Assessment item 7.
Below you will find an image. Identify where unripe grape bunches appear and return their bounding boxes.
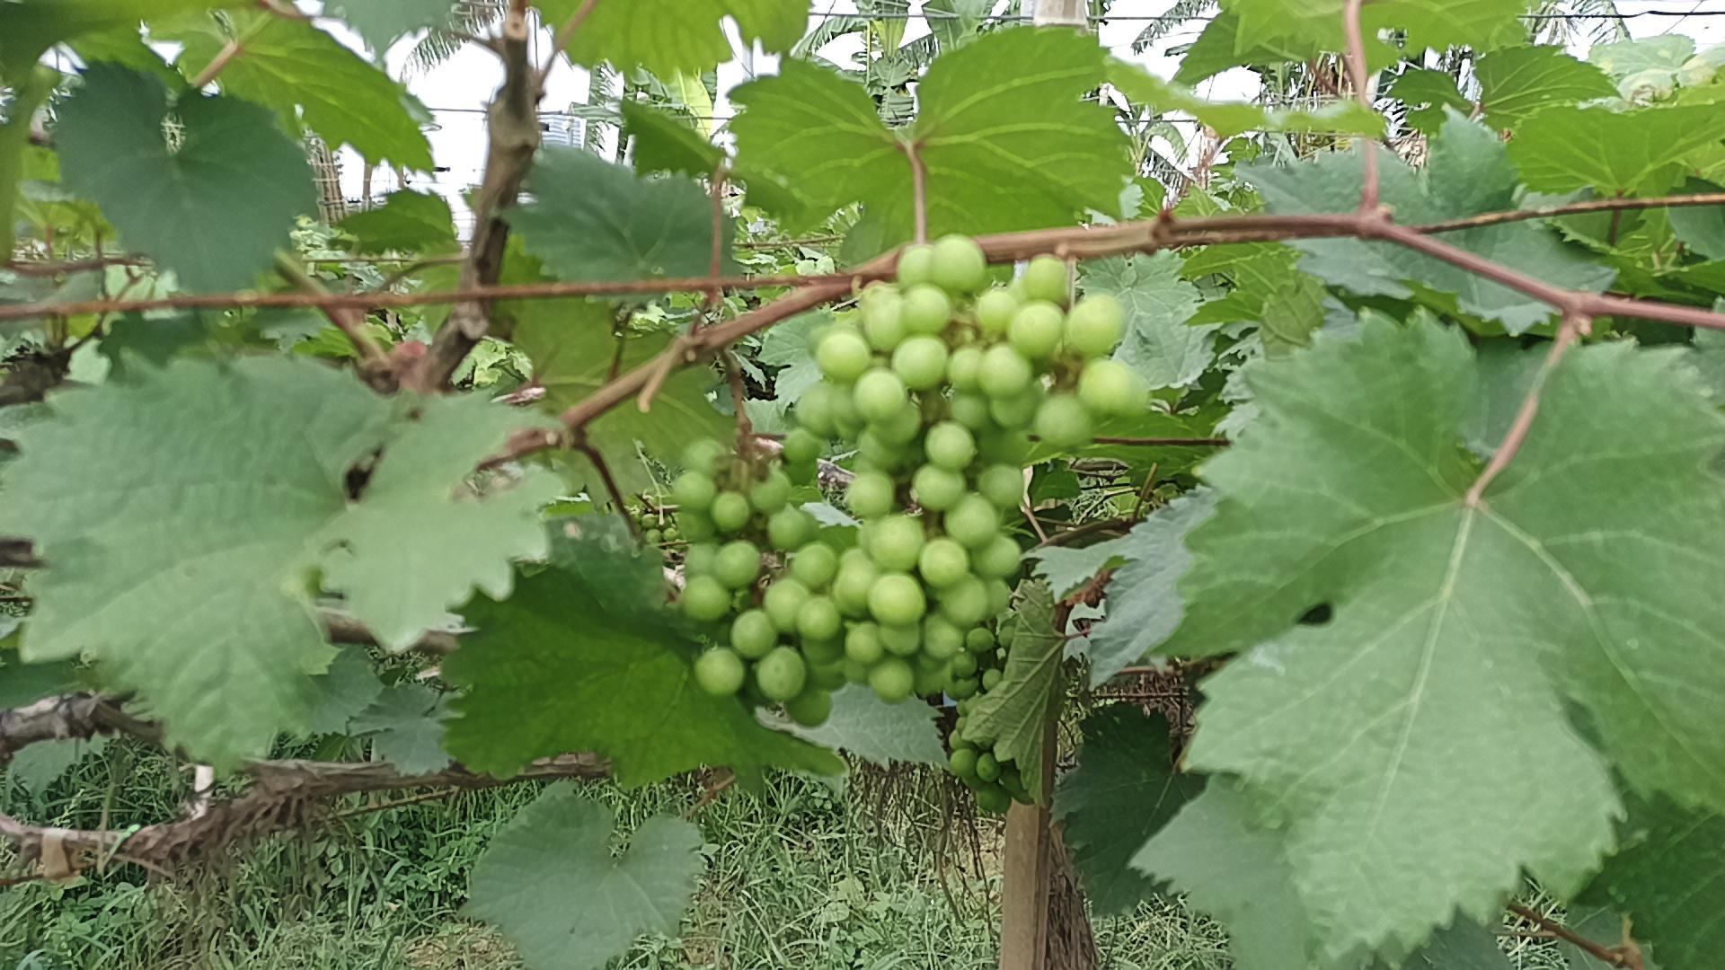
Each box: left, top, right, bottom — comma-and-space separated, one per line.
795, 234, 1152, 704
669, 428, 846, 728
948, 627, 1026, 814
630, 492, 686, 567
